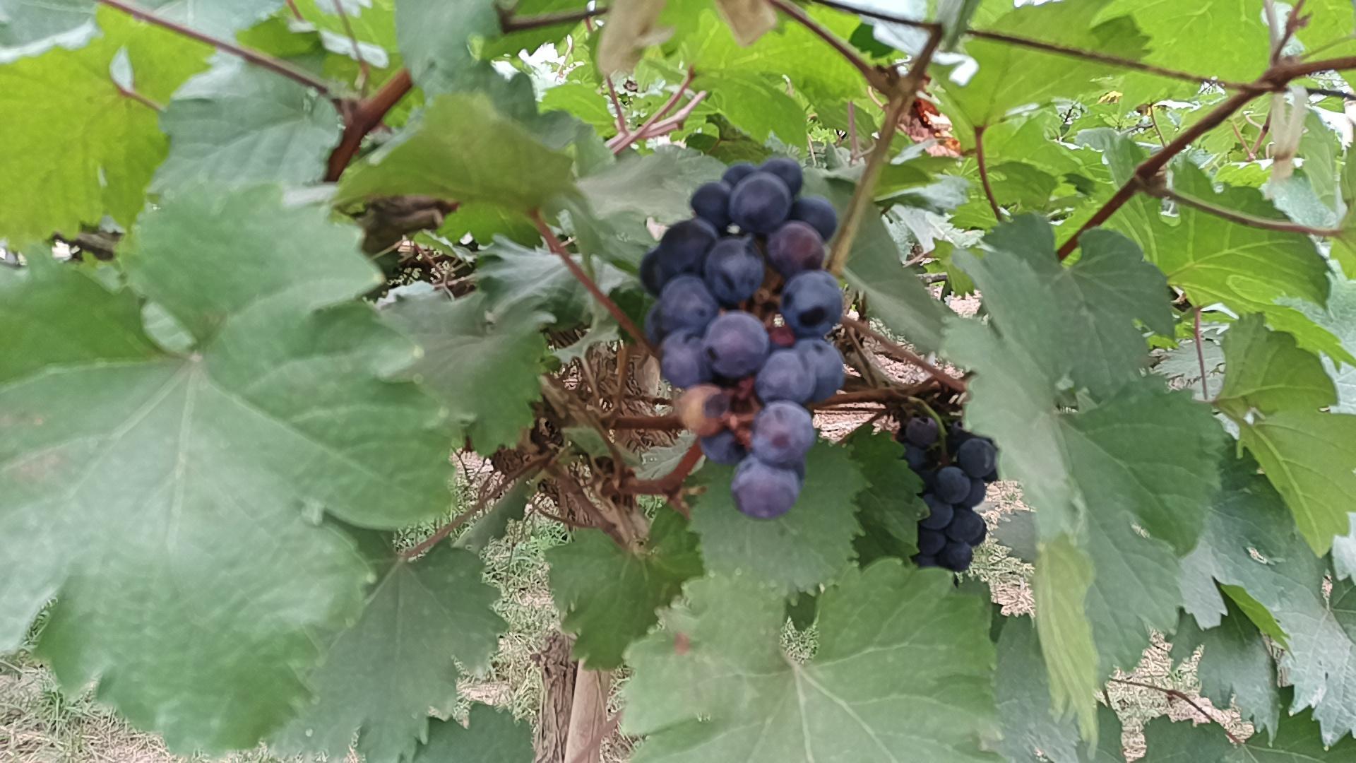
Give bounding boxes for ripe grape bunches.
[899,418,998,572]
[641,158,843,518]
